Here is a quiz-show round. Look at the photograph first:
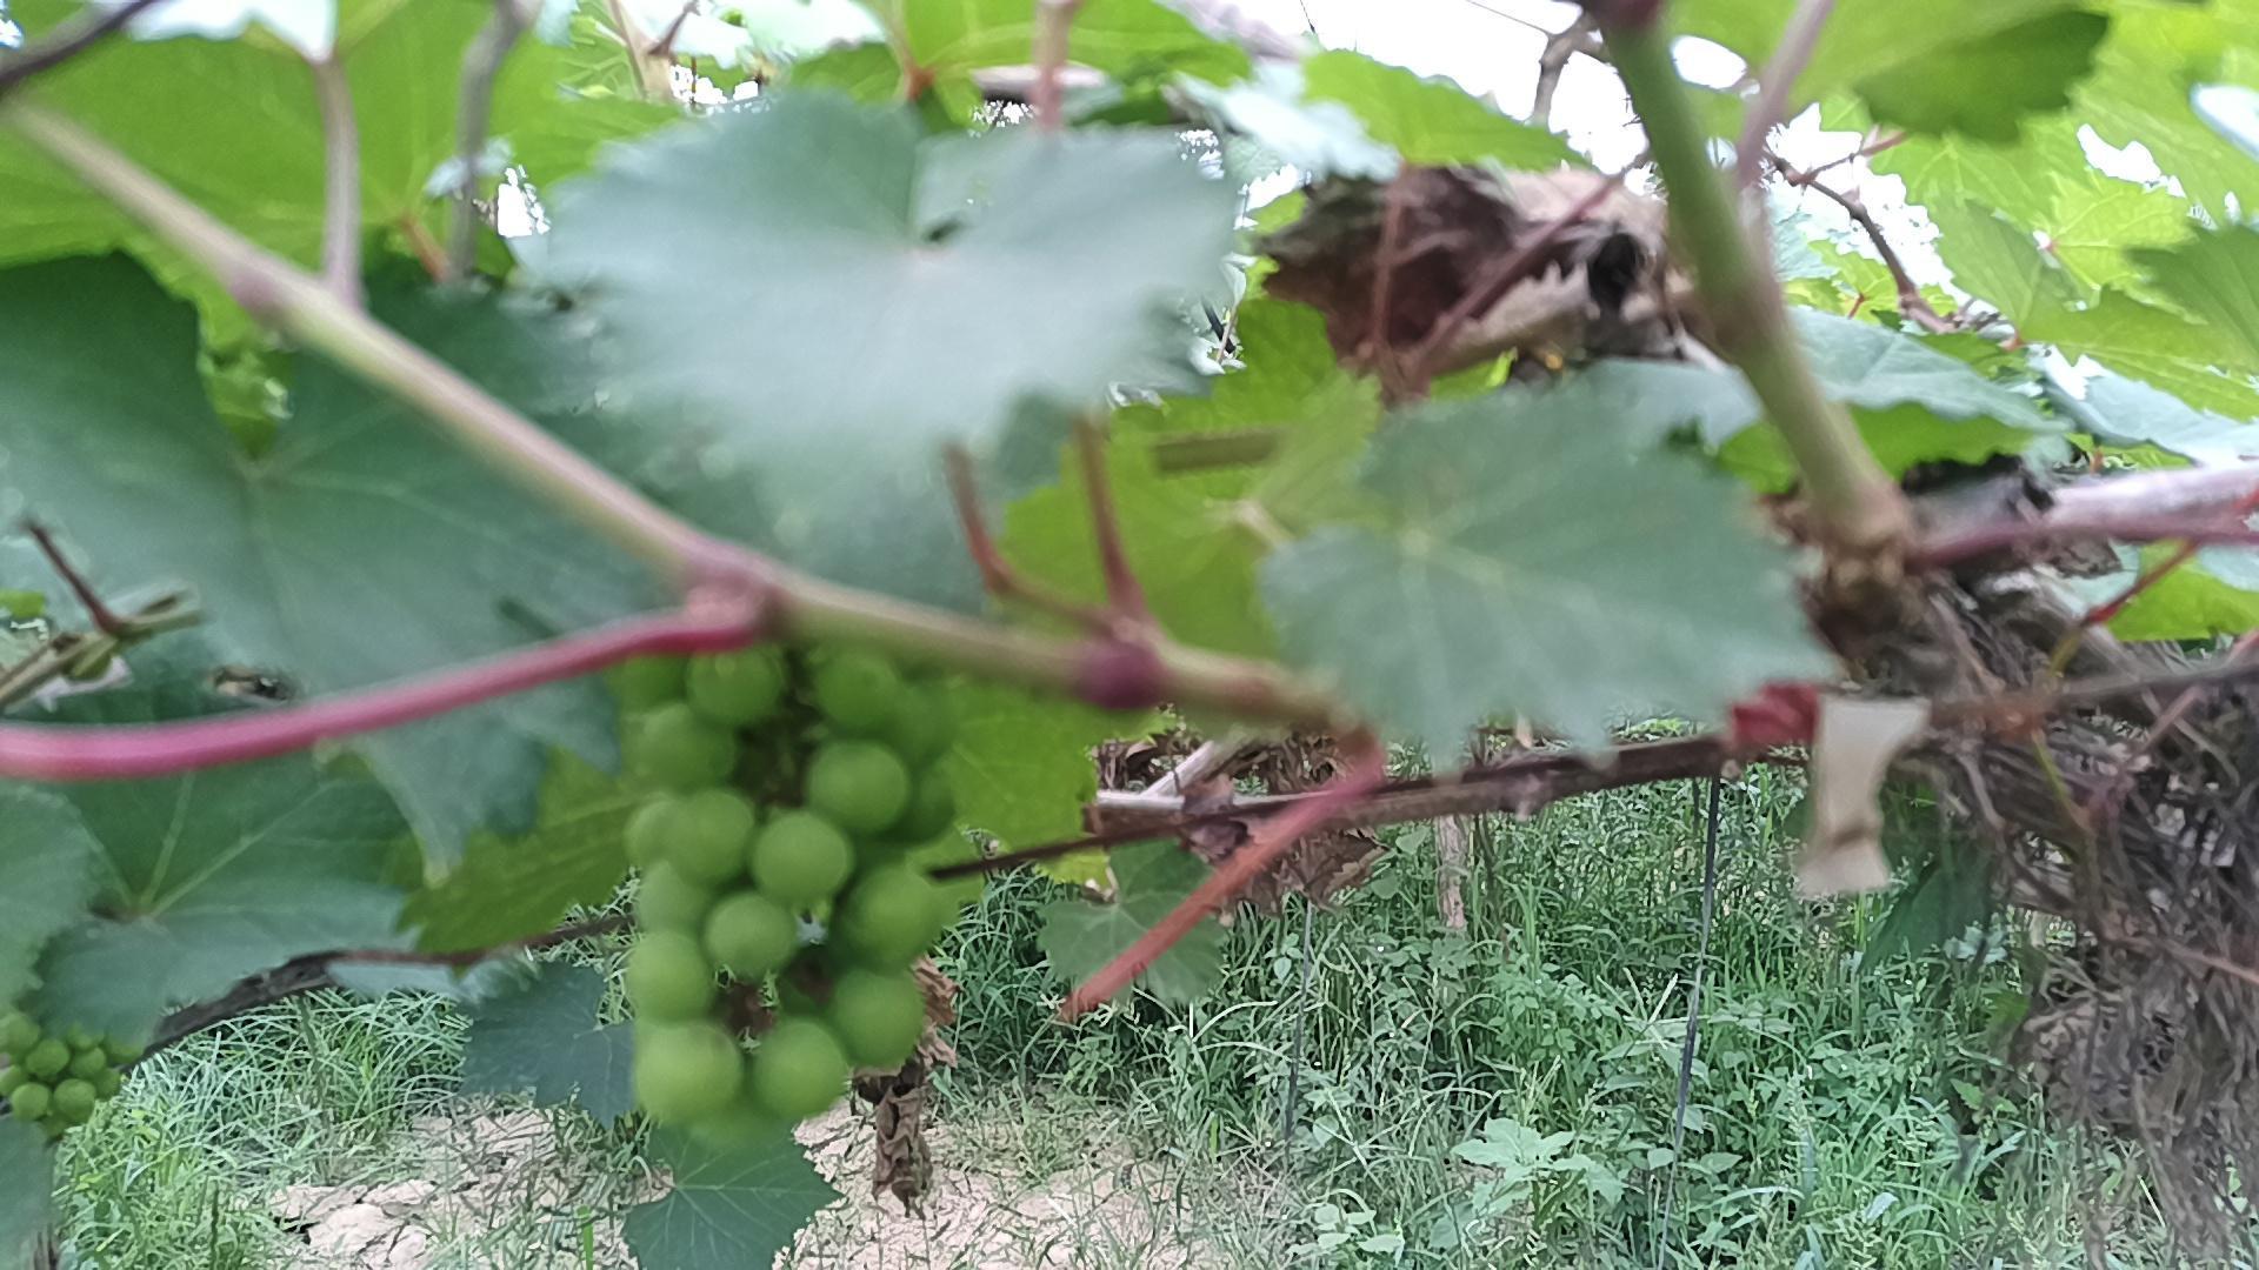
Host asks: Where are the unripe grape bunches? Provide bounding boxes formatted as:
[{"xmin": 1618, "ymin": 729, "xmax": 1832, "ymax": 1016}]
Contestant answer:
[
  {"xmin": 604, "ymin": 644, "xmax": 980, "ymax": 1143},
  {"xmin": 0, "ymin": 1007, "xmax": 142, "ymax": 1136}
]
